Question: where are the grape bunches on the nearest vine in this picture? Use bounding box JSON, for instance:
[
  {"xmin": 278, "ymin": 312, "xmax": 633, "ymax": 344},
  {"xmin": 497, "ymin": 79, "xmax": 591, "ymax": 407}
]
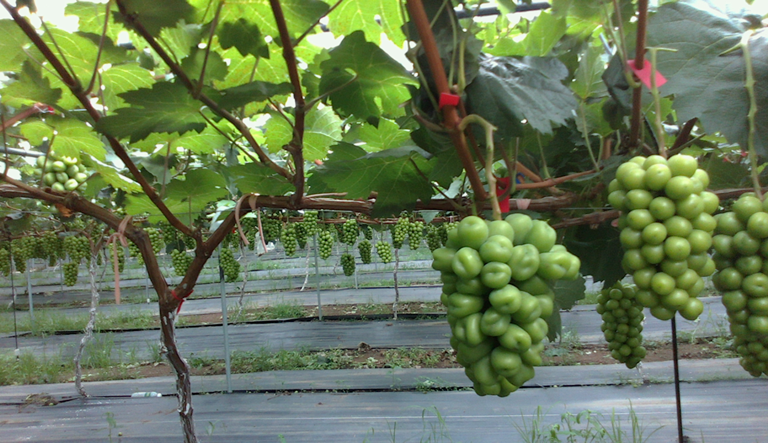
[
  {"xmin": 431, "ymin": 212, "xmax": 581, "ymax": 397},
  {"xmin": 607, "ymin": 154, "xmax": 718, "ymax": 320},
  {"xmin": 711, "ymin": 193, "xmax": 767, "ymax": 340}
]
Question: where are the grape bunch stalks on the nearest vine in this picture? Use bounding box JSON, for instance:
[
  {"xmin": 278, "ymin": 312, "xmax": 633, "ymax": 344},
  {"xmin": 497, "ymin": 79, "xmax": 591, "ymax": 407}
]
[
  {"xmin": 459, "ymin": 114, "xmax": 502, "ymax": 220},
  {"xmin": 644, "ymin": 47, "xmax": 667, "ymax": 159},
  {"xmin": 742, "ymin": 28, "xmax": 764, "ymax": 202}
]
